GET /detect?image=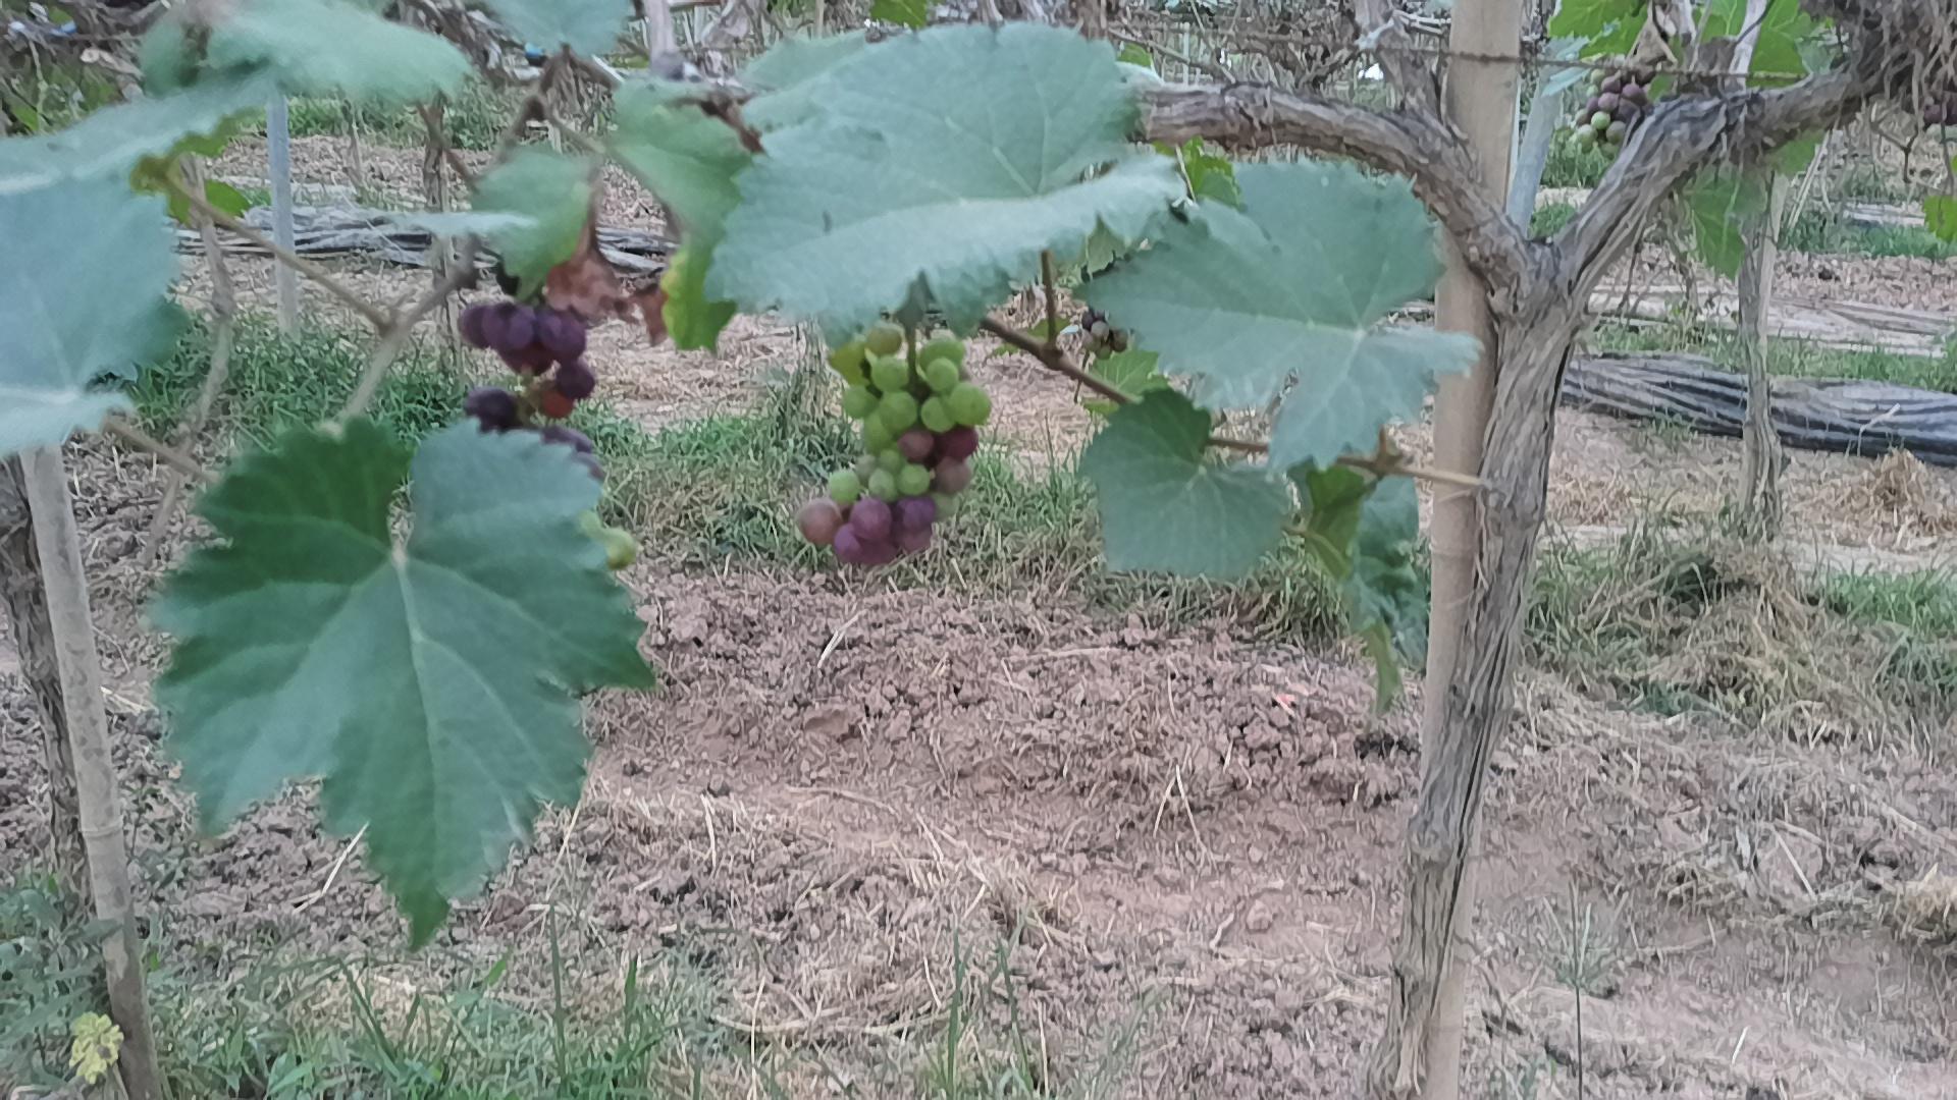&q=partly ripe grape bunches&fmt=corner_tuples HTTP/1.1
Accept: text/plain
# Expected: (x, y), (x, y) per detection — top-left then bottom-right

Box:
(796, 323), (990, 565)
(459, 293), (604, 480)
(1573, 65), (1654, 153)
(1072, 308), (1130, 359)
(599, 531), (637, 568)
